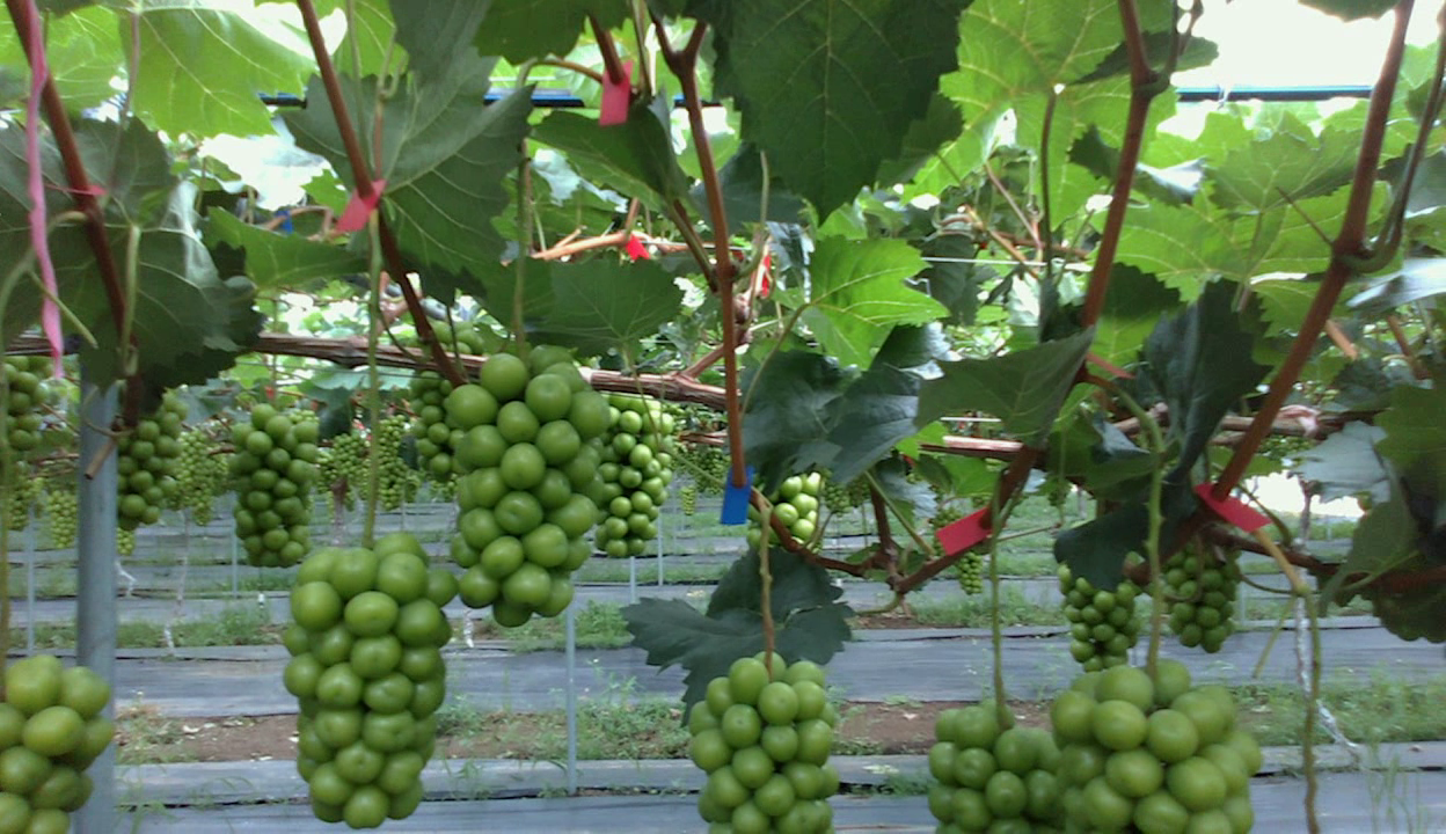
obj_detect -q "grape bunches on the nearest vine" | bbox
[447,344,609,628]
[927,701,1071,832]
[284,533,458,831]
[686,652,840,833]
[0,656,114,833]
[1050,660,1262,833]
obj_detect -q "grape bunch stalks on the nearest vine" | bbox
[755,496,775,682]
[513,56,602,368]
[1081,374,1166,682]
[360,209,384,549]
[989,464,1013,731]
[0,210,88,704]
